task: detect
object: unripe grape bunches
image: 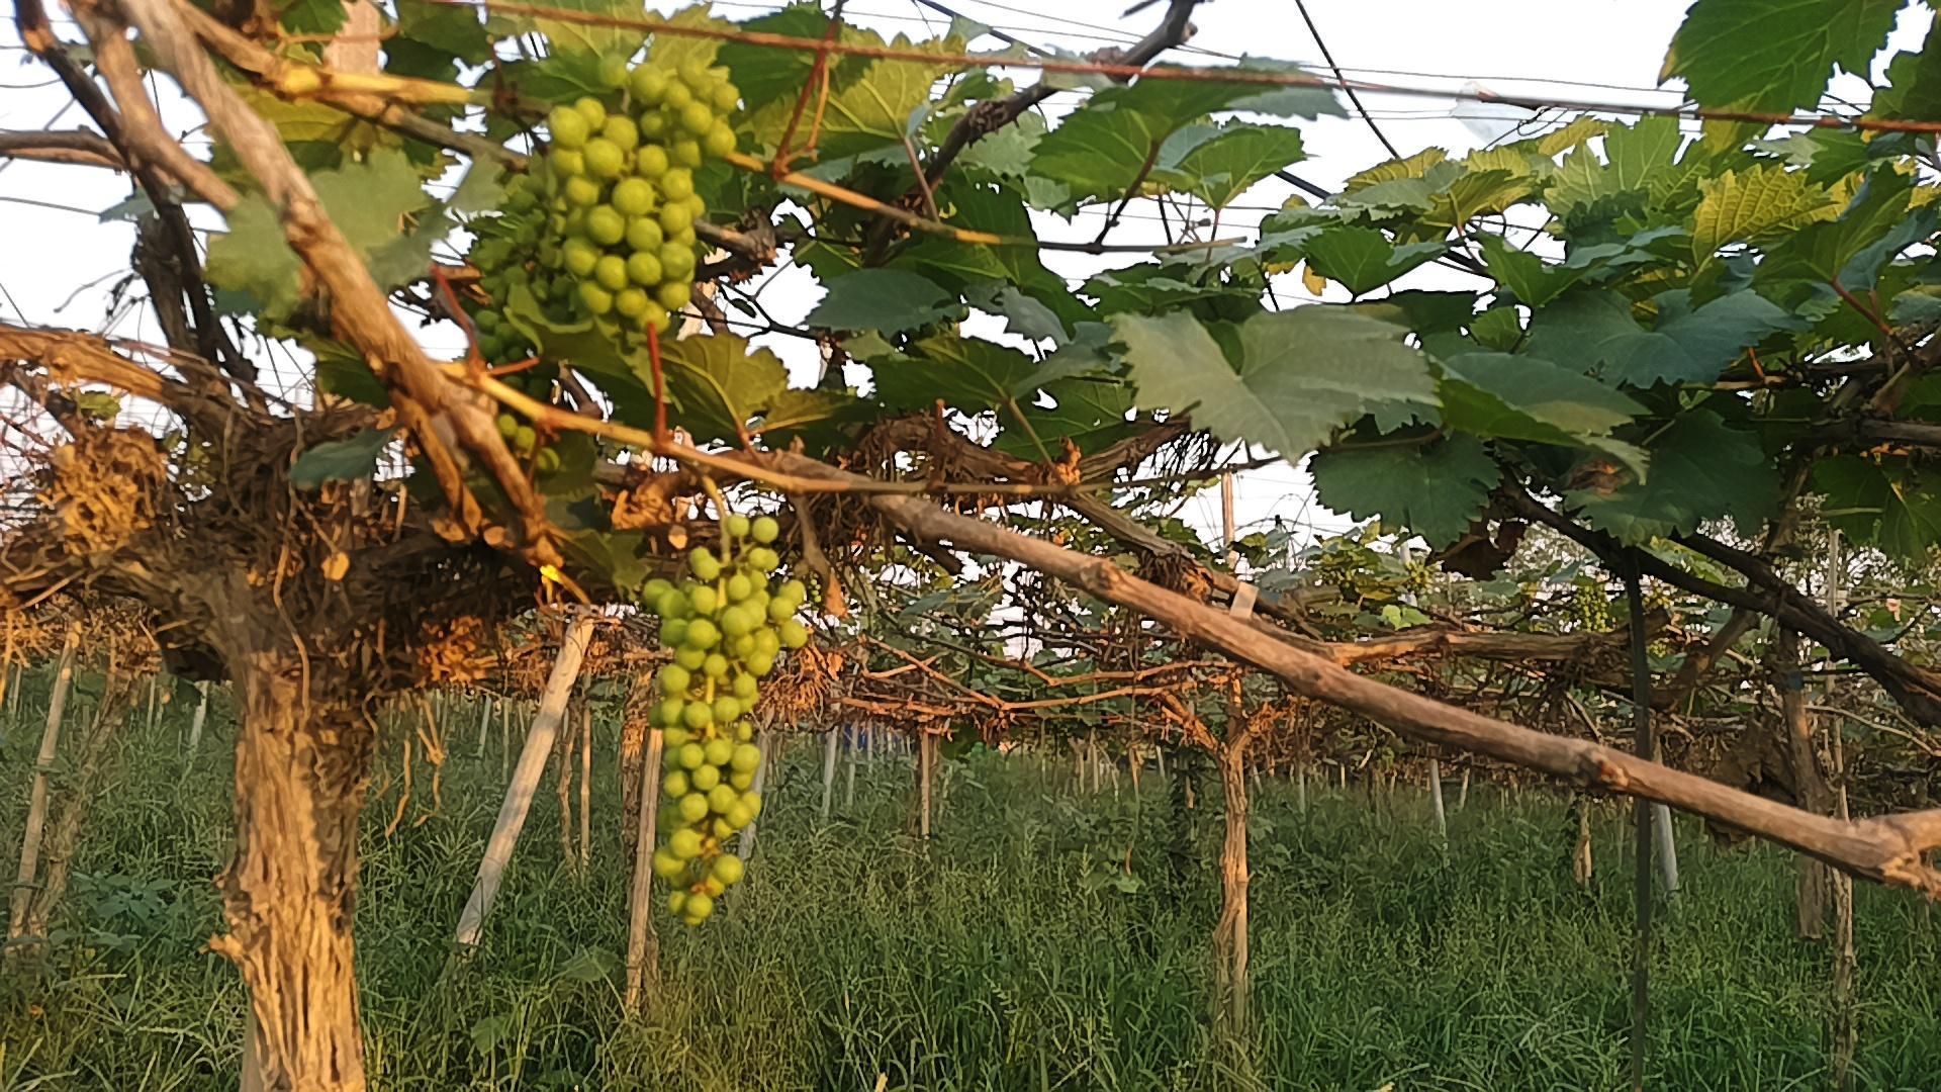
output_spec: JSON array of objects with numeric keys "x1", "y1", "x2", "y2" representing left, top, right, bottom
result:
[
  {"x1": 640, "y1": 513, "x2": 809, "y2": 925},
  {"x1": 448, "y1": 174, "x2": 561, "y2": 476},
  {"x1": 542, "y1": 64, "x2": 738, "y2": 332}
]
